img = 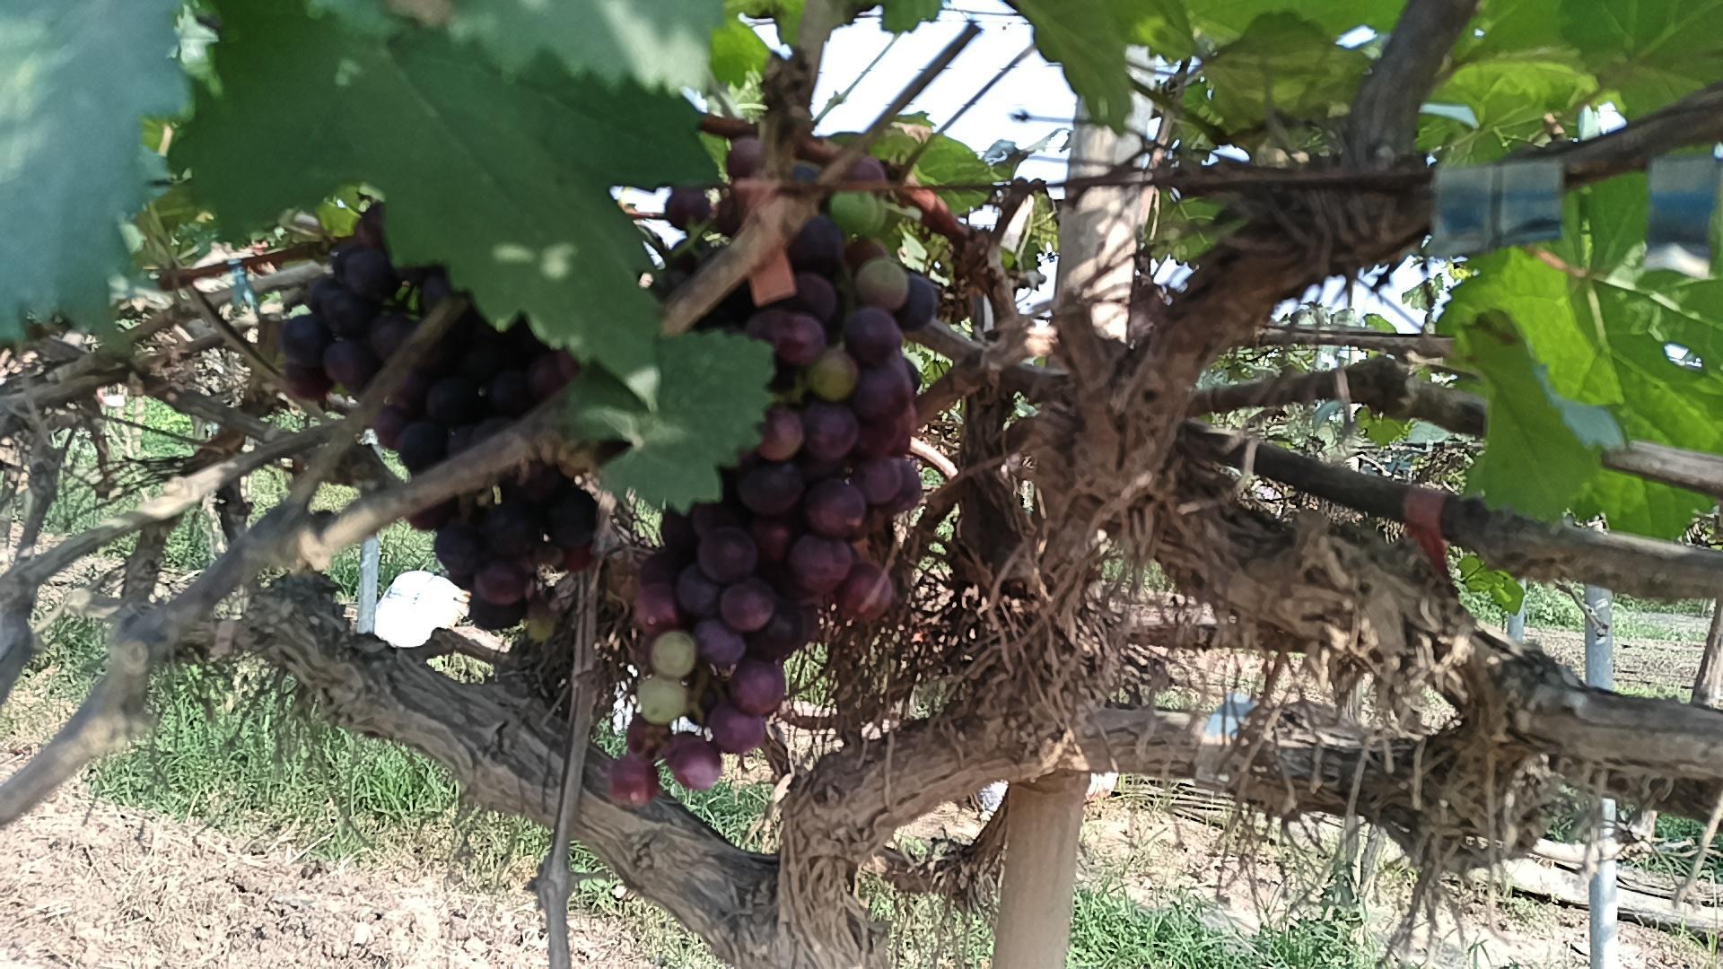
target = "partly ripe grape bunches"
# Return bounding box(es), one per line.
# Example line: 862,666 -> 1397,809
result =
611,133 -> 933,807
284,205 -> 599,643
